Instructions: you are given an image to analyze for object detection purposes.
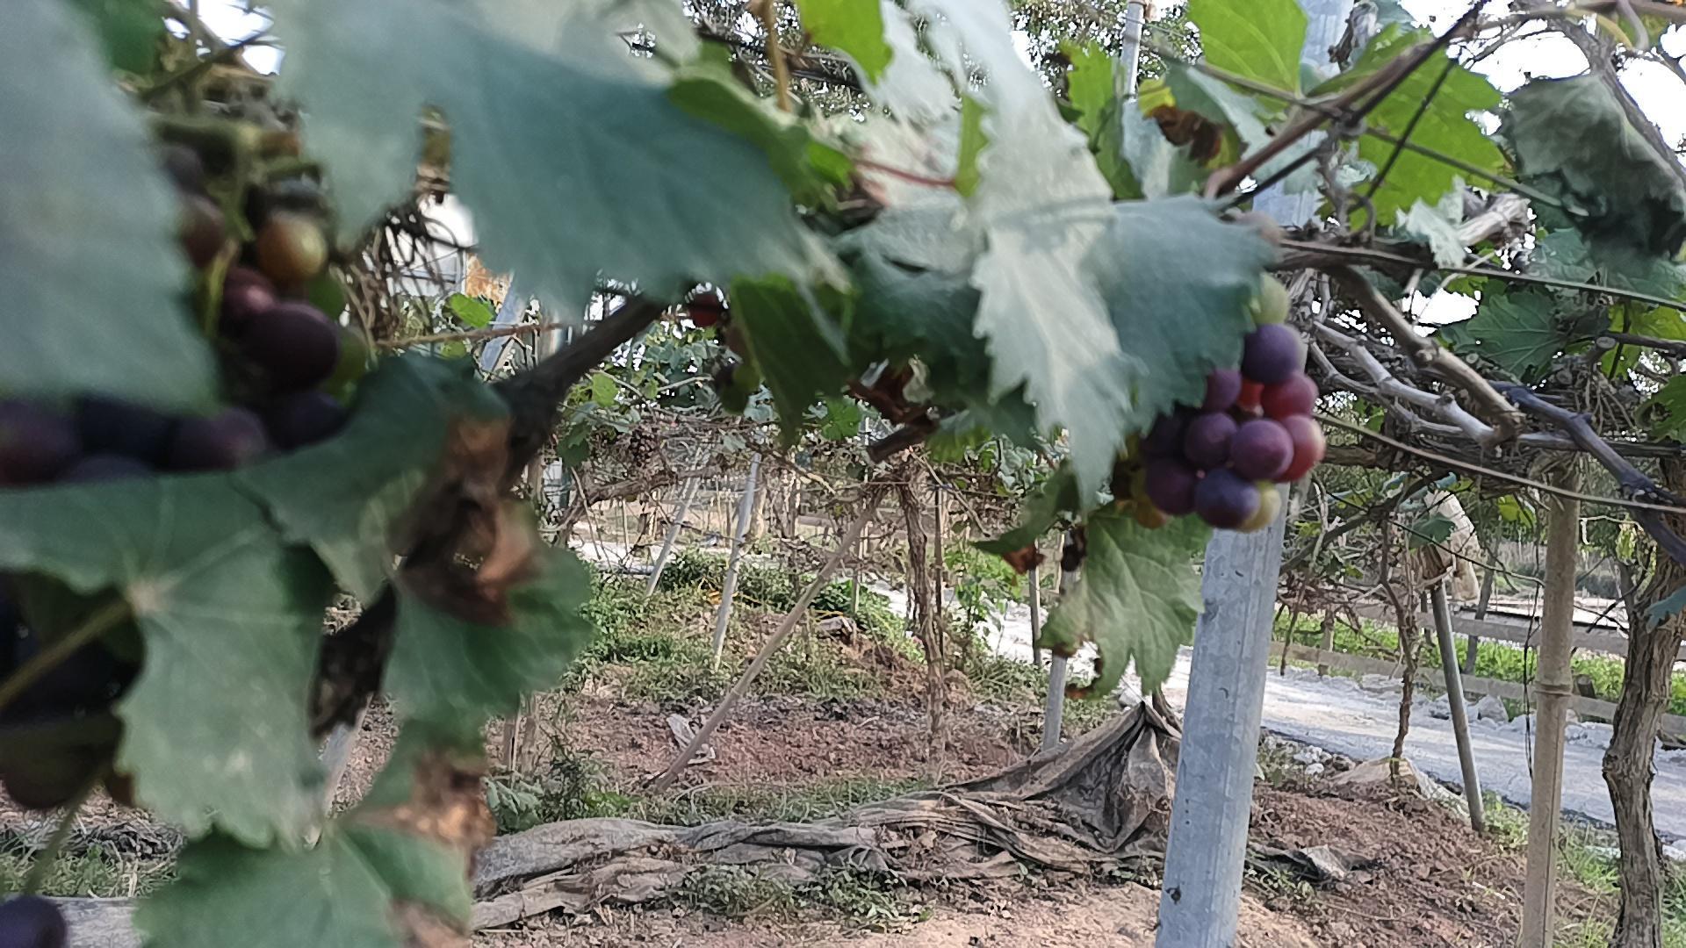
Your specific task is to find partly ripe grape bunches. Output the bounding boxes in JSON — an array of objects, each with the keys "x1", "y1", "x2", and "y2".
[
  {"x1": 0, "y1": 138, "x2": 375, "y2": 947},
  {"x1": 1112, "y1": 276, "x2": 1323, "y2": 531}
]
